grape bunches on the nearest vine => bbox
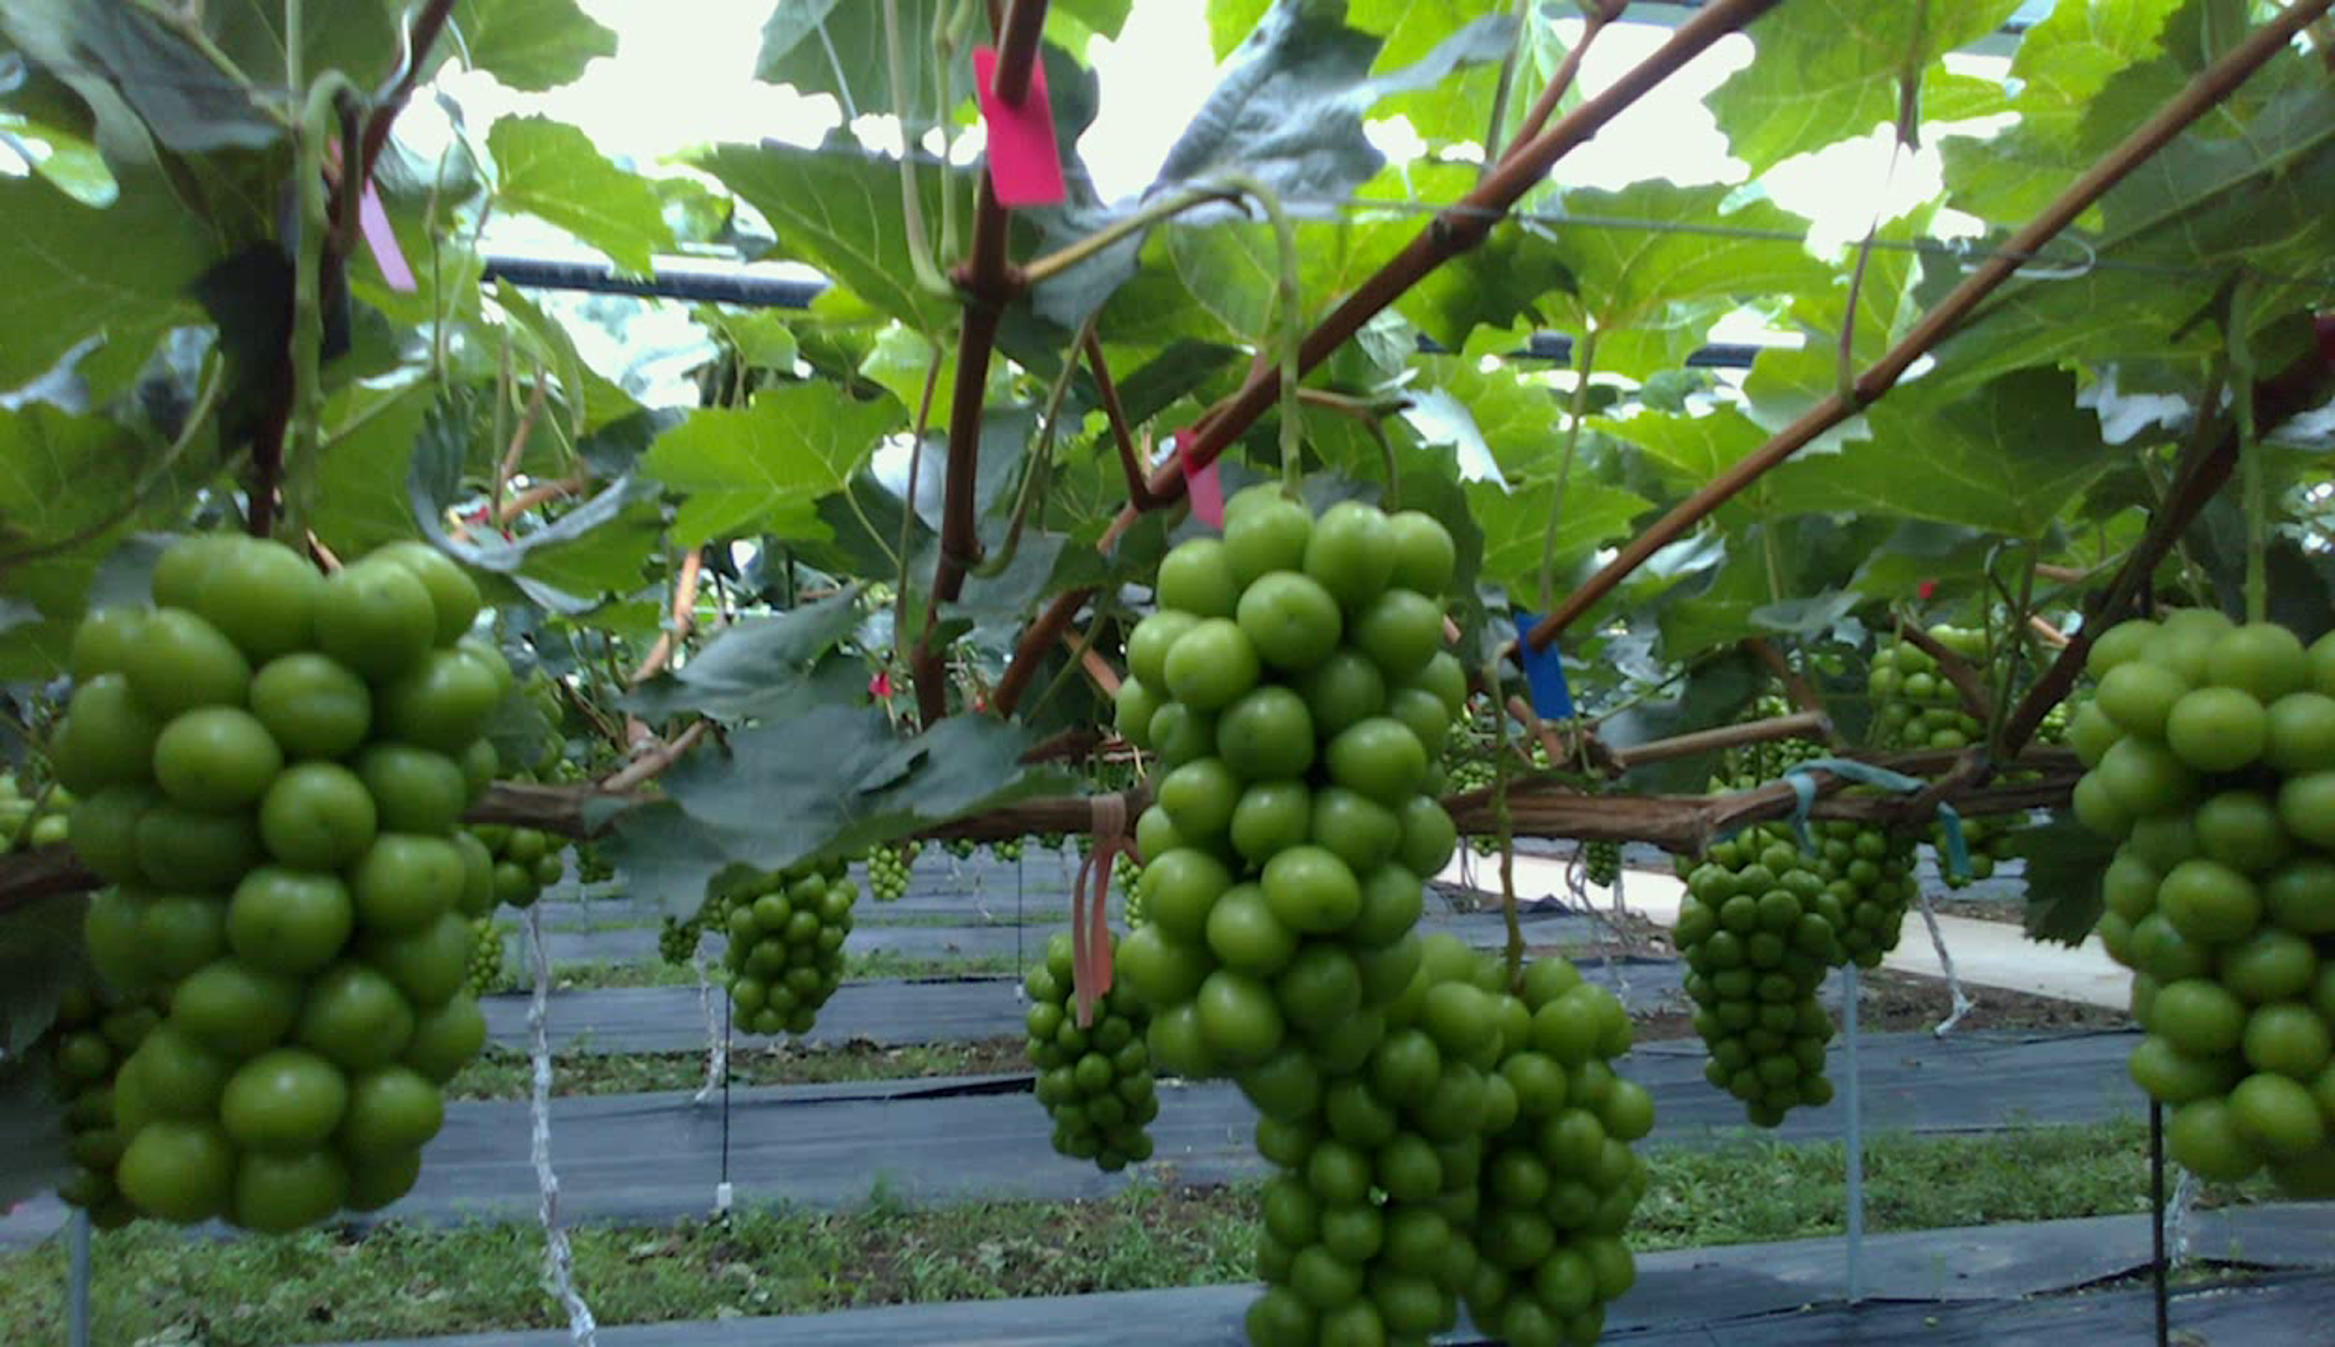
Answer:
[1673,827,1845,1126]
[49,529,516,1237]
[2067,606,2333,1197]
[1244,932,1519,1345]
[1461,954,1658,1345]
[1115,479,1469,1126]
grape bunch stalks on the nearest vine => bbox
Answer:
[1025,176,1300,505]
[1489,638,1521,993]
[290,75,365,558]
